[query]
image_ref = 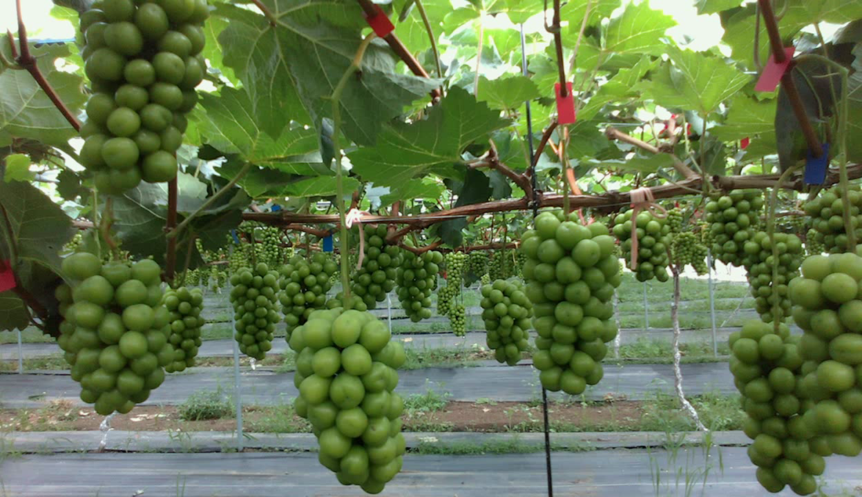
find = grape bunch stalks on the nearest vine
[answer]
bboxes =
[791,54,856,254]
[767,159,806,335]
[561,125,570,222]
[331,31,376,313]
[99,197,119,261]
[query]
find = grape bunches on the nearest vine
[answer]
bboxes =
[521,210,622,396]
[289,307,406,495]
[57,251,175,416]
[787,252,861,457]
[79,1,210,195]
[728,320,833,496]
